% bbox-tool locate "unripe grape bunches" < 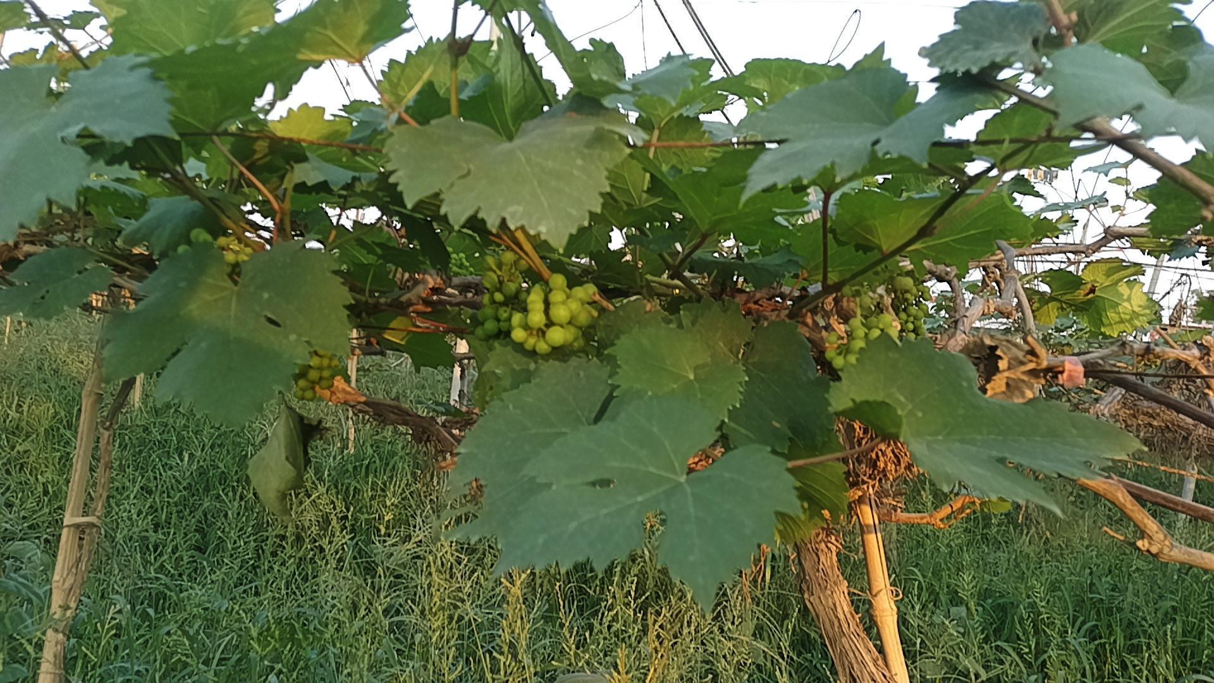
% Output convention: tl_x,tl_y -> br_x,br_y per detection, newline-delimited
178,228 -> 253,265
825,275 -> 932,369
474,251 -> 600,355
294,350 -> 343,400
